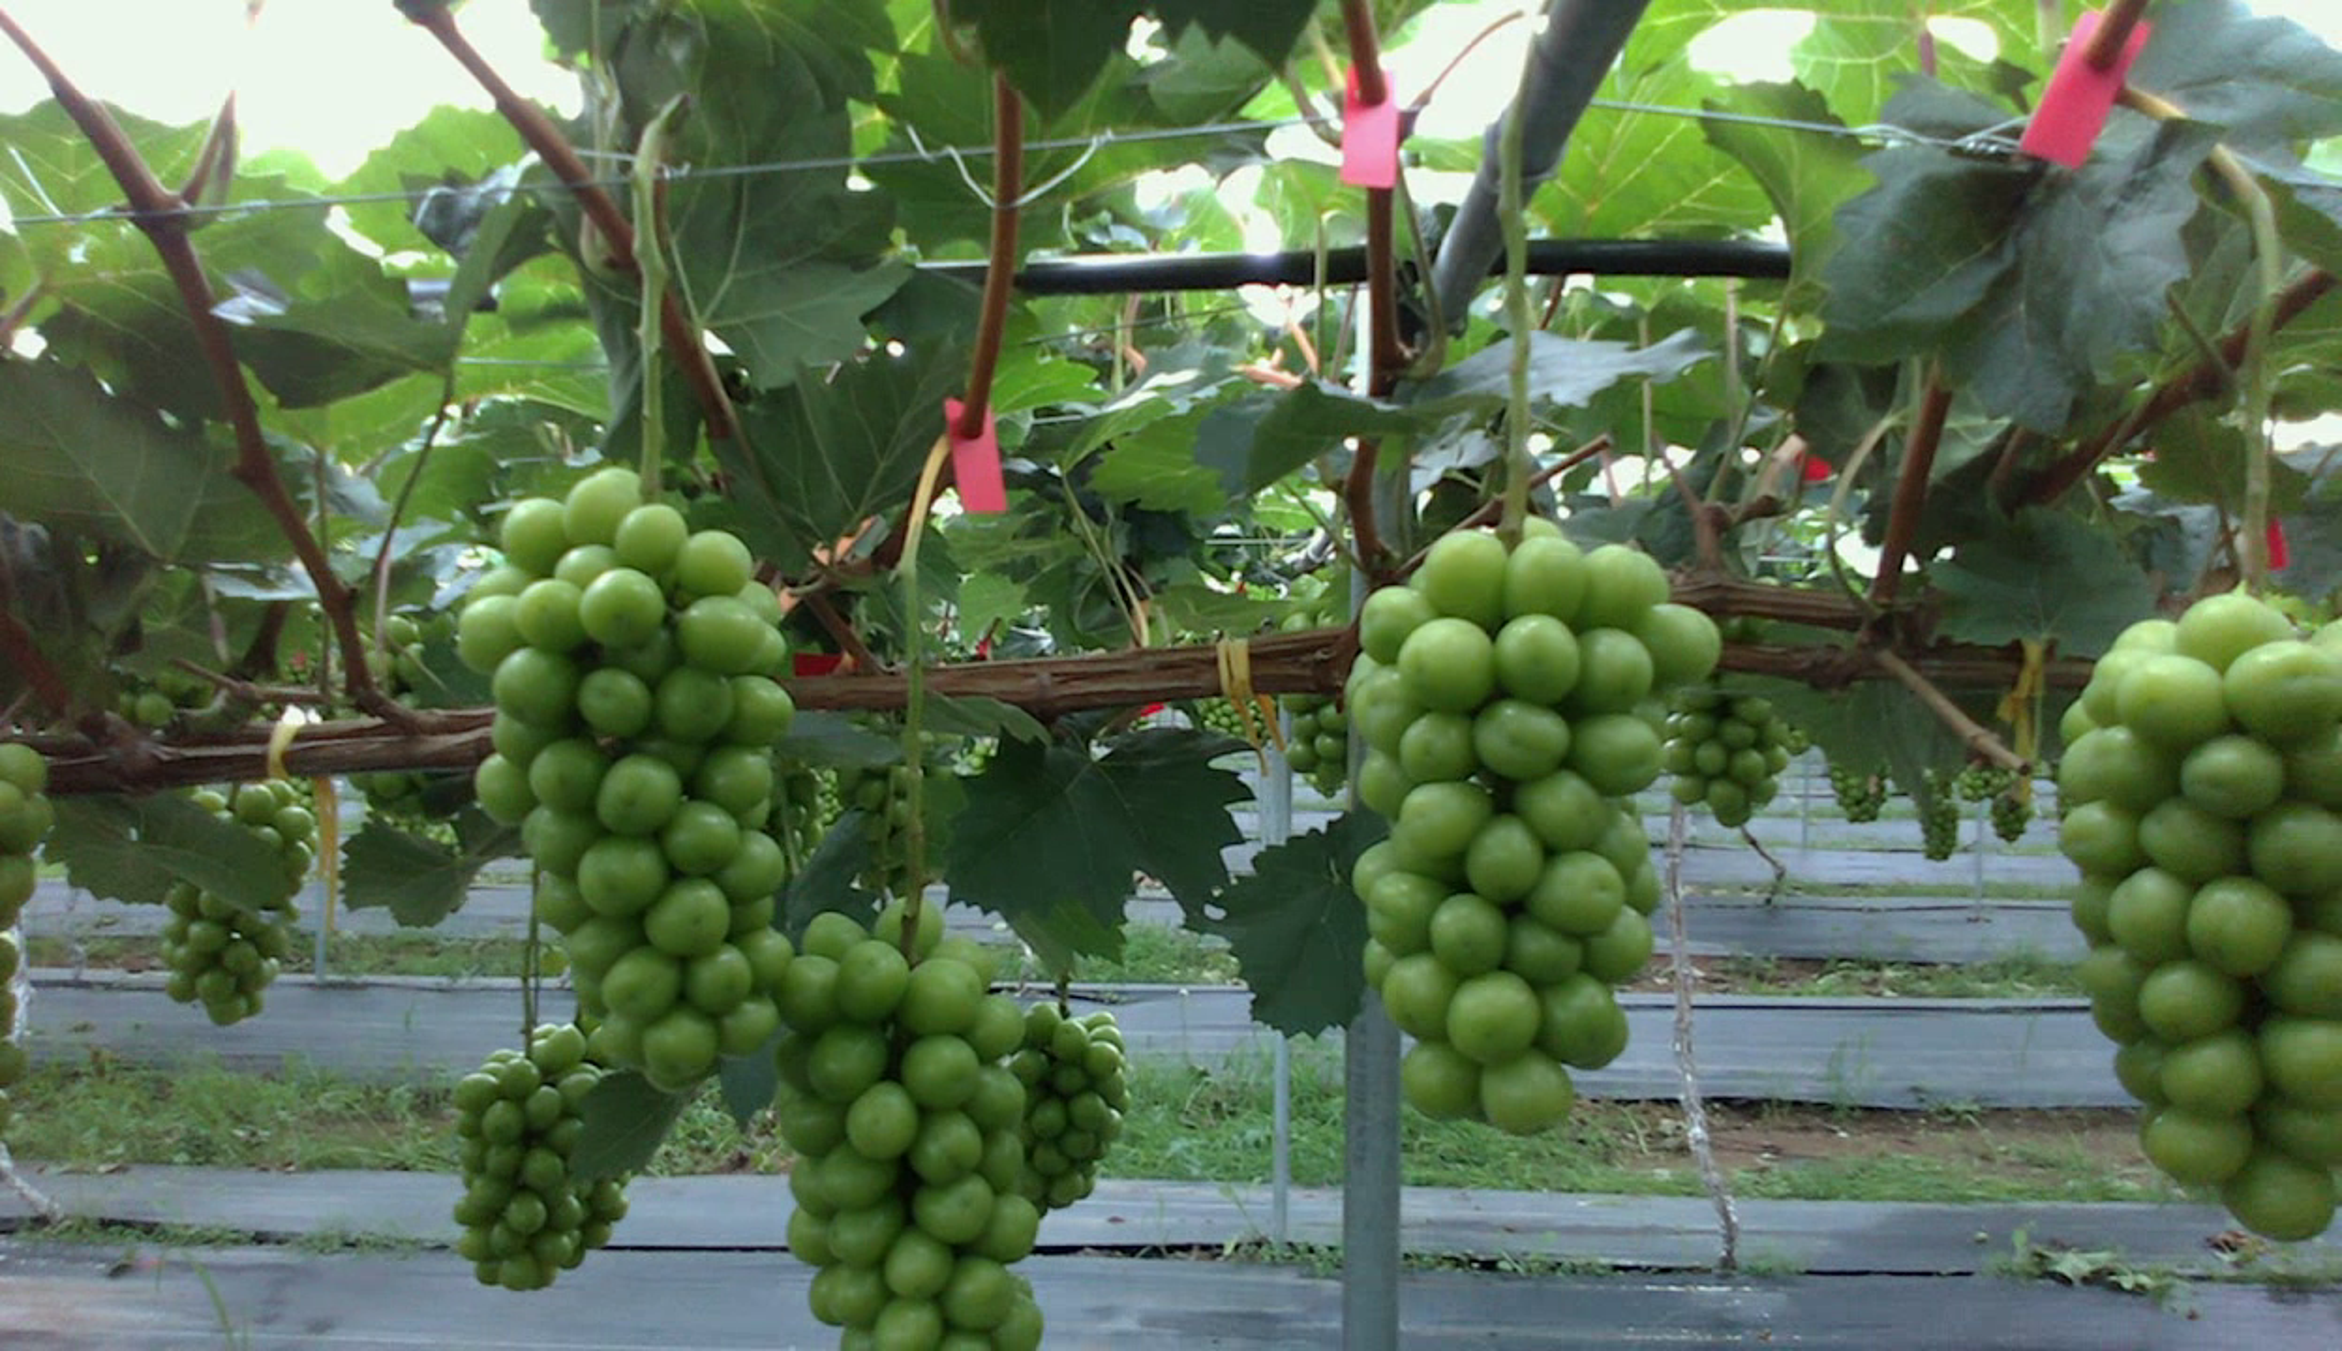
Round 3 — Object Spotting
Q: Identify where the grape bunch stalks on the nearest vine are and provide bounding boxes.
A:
[899,430,953,955]
[629,122,677,505]
[1498,98,1529,546]
[2107,75,2284,606]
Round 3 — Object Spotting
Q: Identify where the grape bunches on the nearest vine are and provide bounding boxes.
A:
[775,897,1043,1349]
[1346,514,1725,1128]
[2053,587,2338,1240]
[458,467,792,1090]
